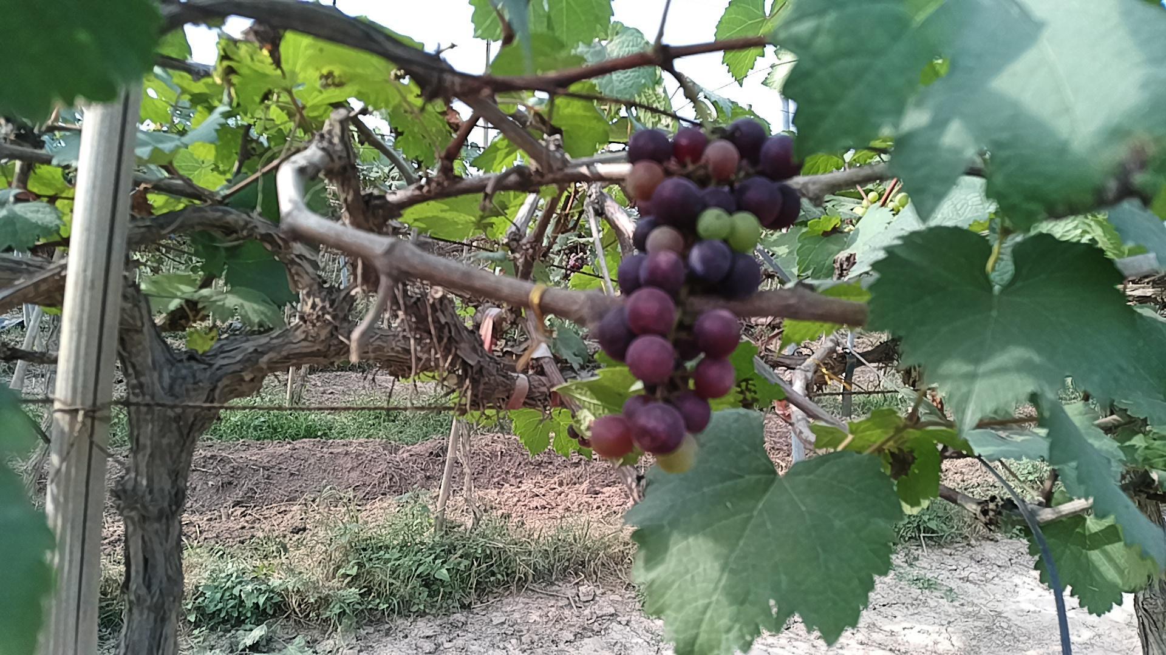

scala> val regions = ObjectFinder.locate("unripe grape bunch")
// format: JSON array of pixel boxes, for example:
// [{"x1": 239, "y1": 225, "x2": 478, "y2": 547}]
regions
[{"x1": 851, "y1": 192, "x2": 909, "y2": 217}]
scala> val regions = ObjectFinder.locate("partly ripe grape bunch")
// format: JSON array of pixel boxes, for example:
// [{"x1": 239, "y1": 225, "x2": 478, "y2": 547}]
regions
[{"x1": 589, "y1": 119, "x2": 802, "y2": 475}]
